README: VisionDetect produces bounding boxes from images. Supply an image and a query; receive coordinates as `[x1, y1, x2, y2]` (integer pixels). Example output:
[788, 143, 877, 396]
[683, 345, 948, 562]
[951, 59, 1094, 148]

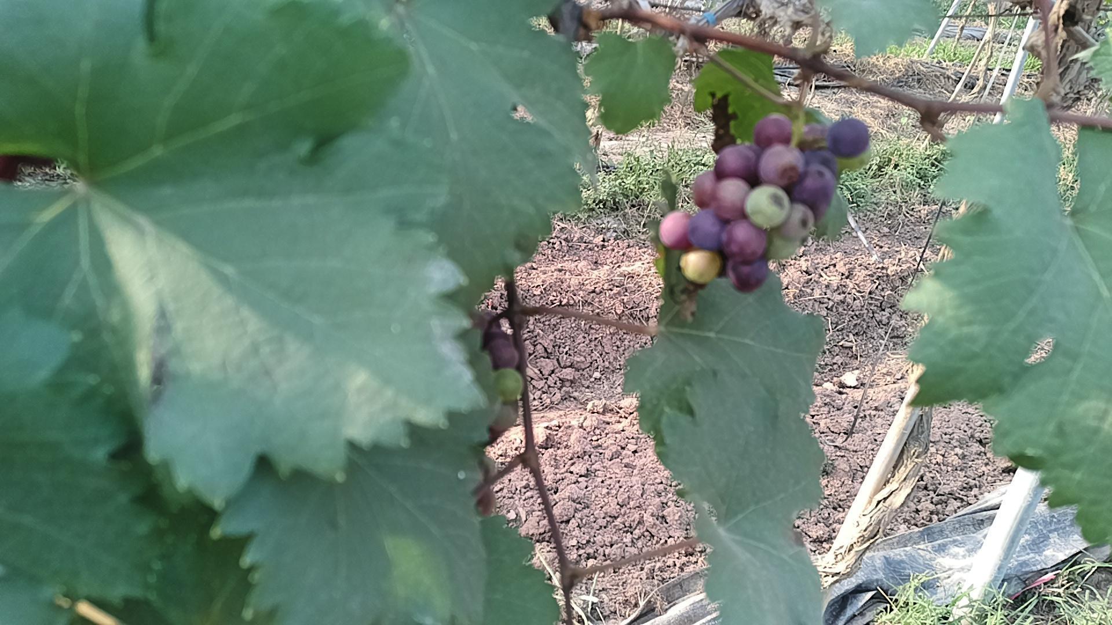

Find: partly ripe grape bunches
[475, 311, 525, 442]
[659, 114, 870, 292]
